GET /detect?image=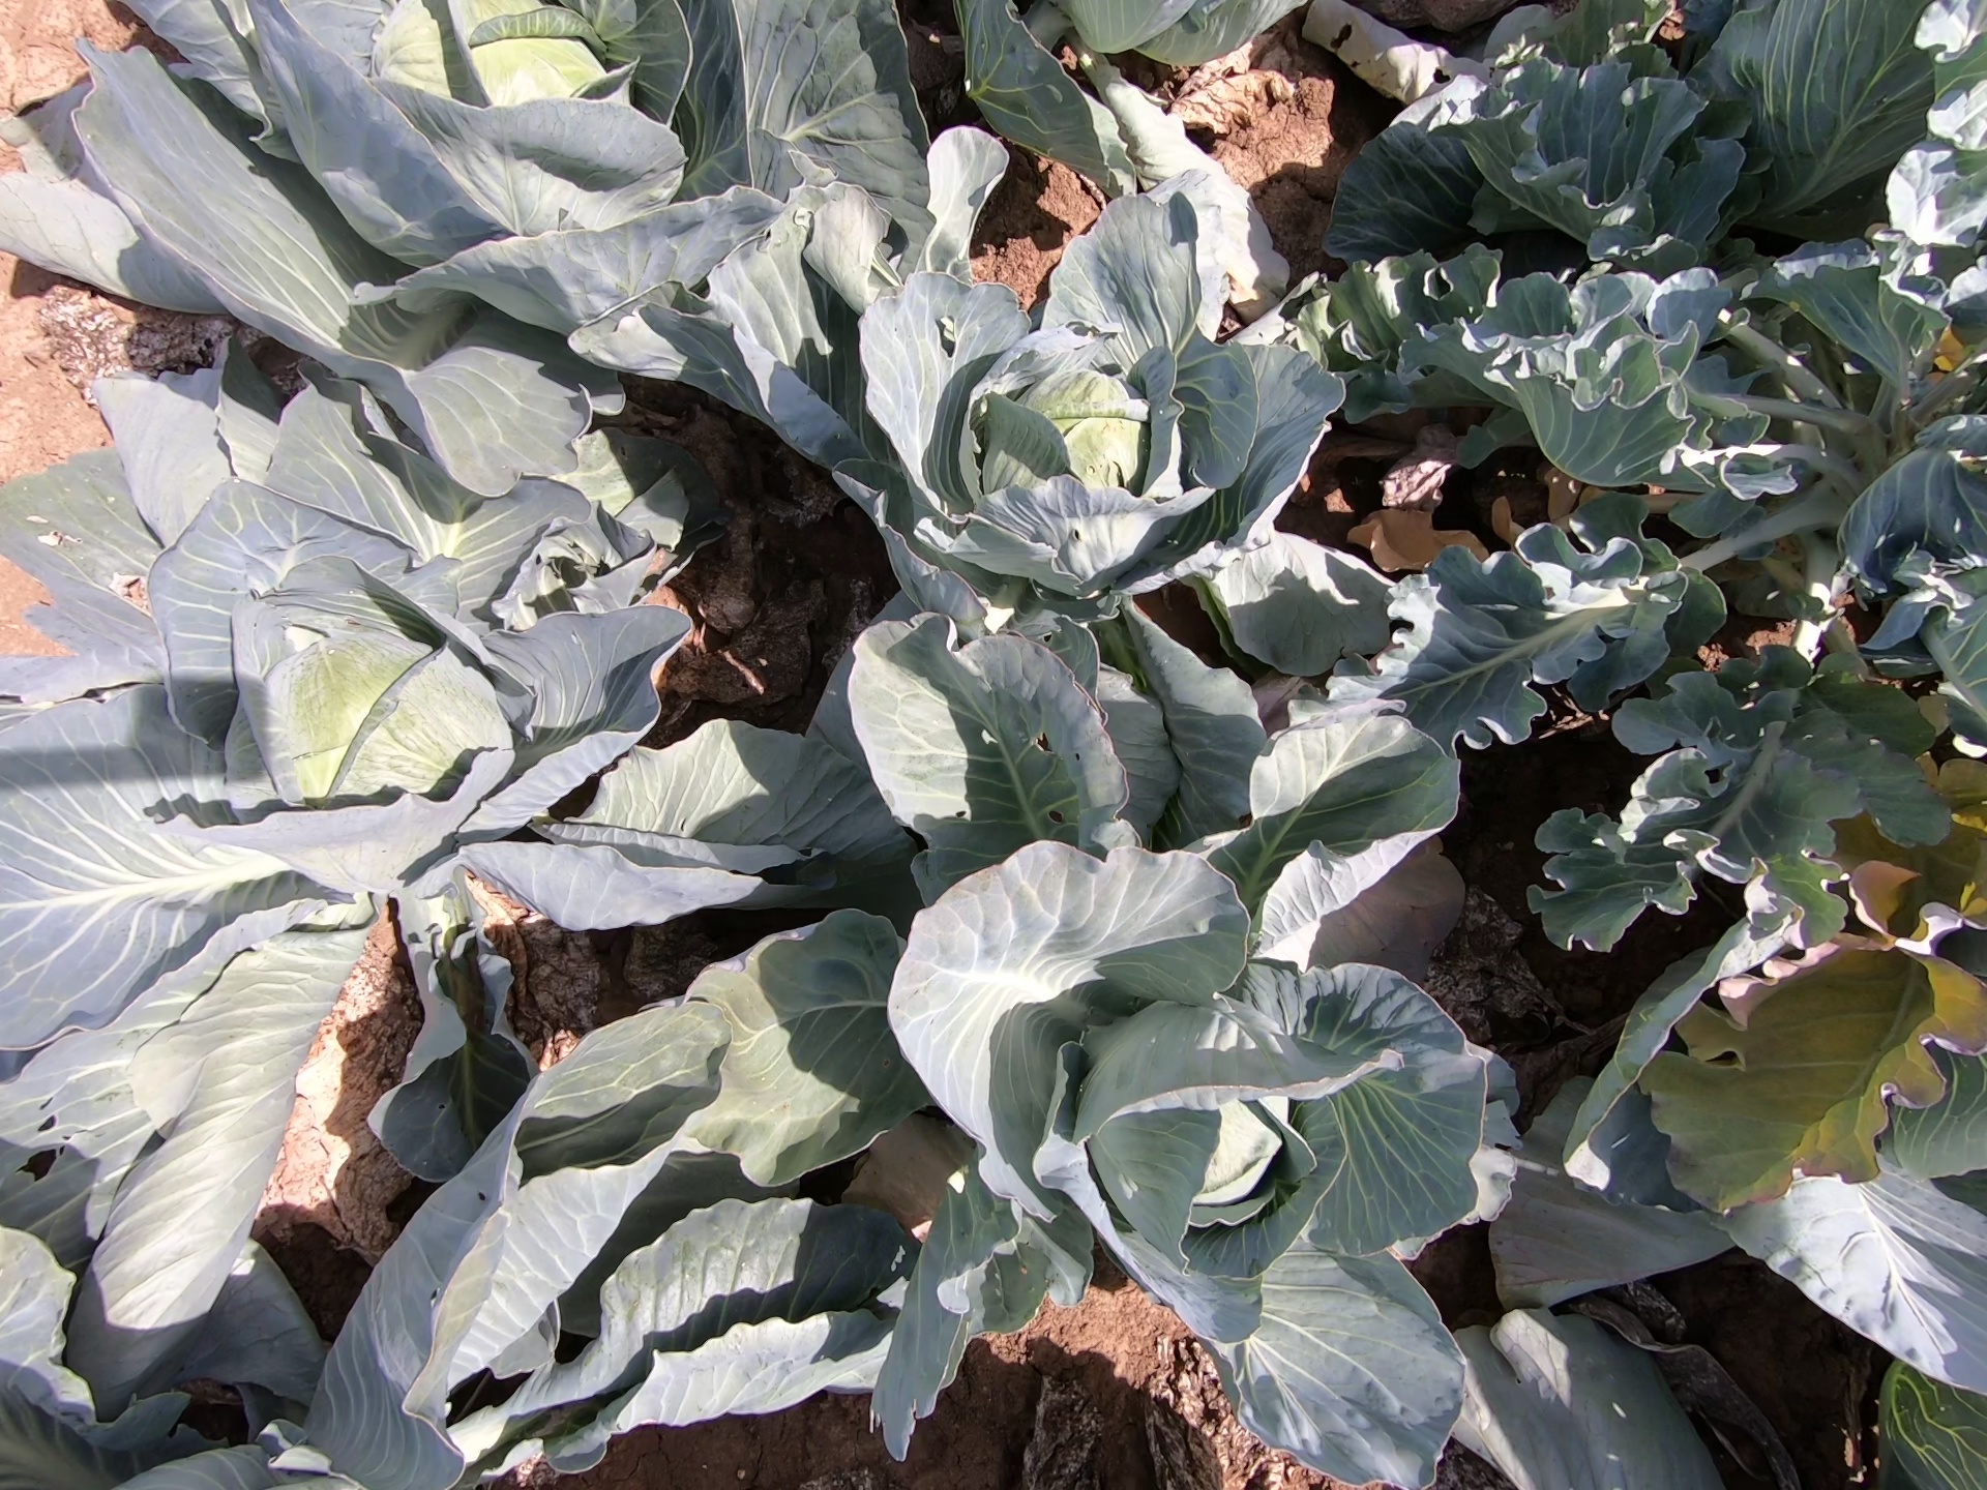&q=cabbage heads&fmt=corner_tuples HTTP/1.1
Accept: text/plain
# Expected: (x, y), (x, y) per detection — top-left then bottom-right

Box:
(364, 1), (635, 237)
(1095, 1012), (1288, 1217)
(217, 628), (509, 867)
(981, 368), (1177, 566)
